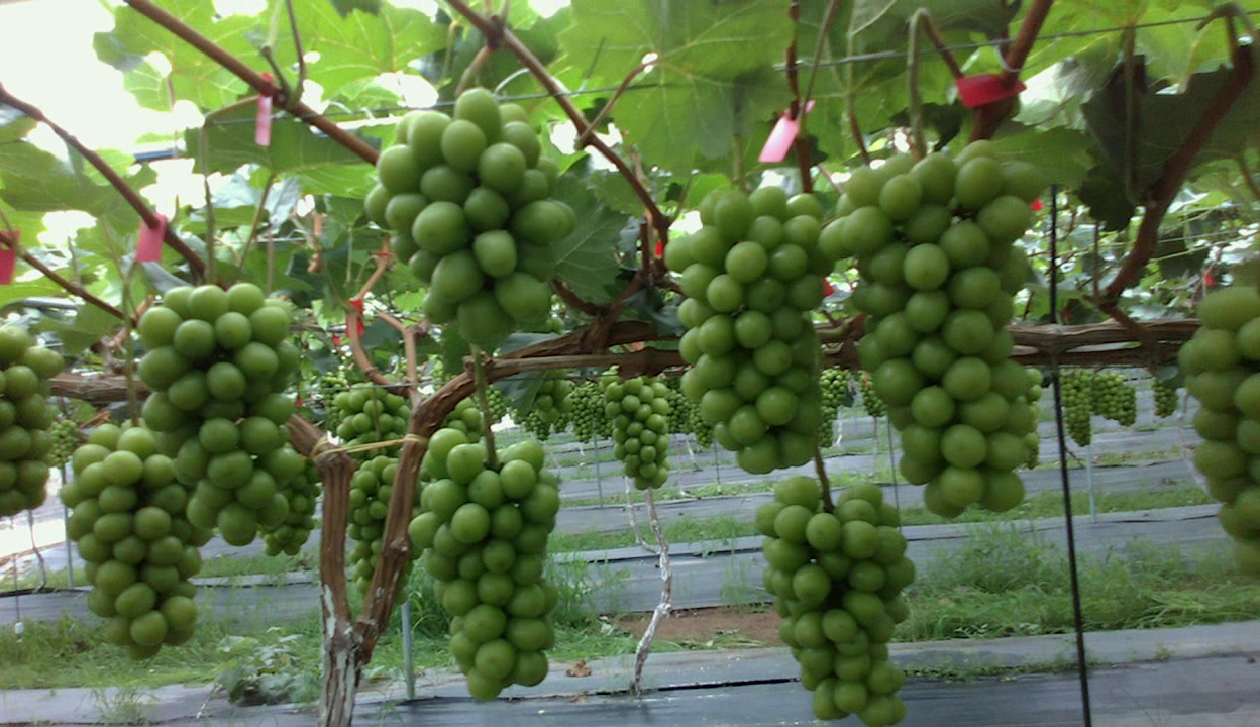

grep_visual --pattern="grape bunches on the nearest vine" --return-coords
[1180,284,1258,544]
[58,422,211,661]
[821,140,1045,519]
[365,89,574,345]
[135,283,303,545]
[665,185,835,475]
[756,475,918,726]
[409,428,561,701]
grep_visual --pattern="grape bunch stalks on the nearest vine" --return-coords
[907,10,964,154]
[815,450,832,511]
[120,262,139,424]
[455,48,494,92]
[474,348,497,466]
[197,95,255,281]
[733,127,746,190]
